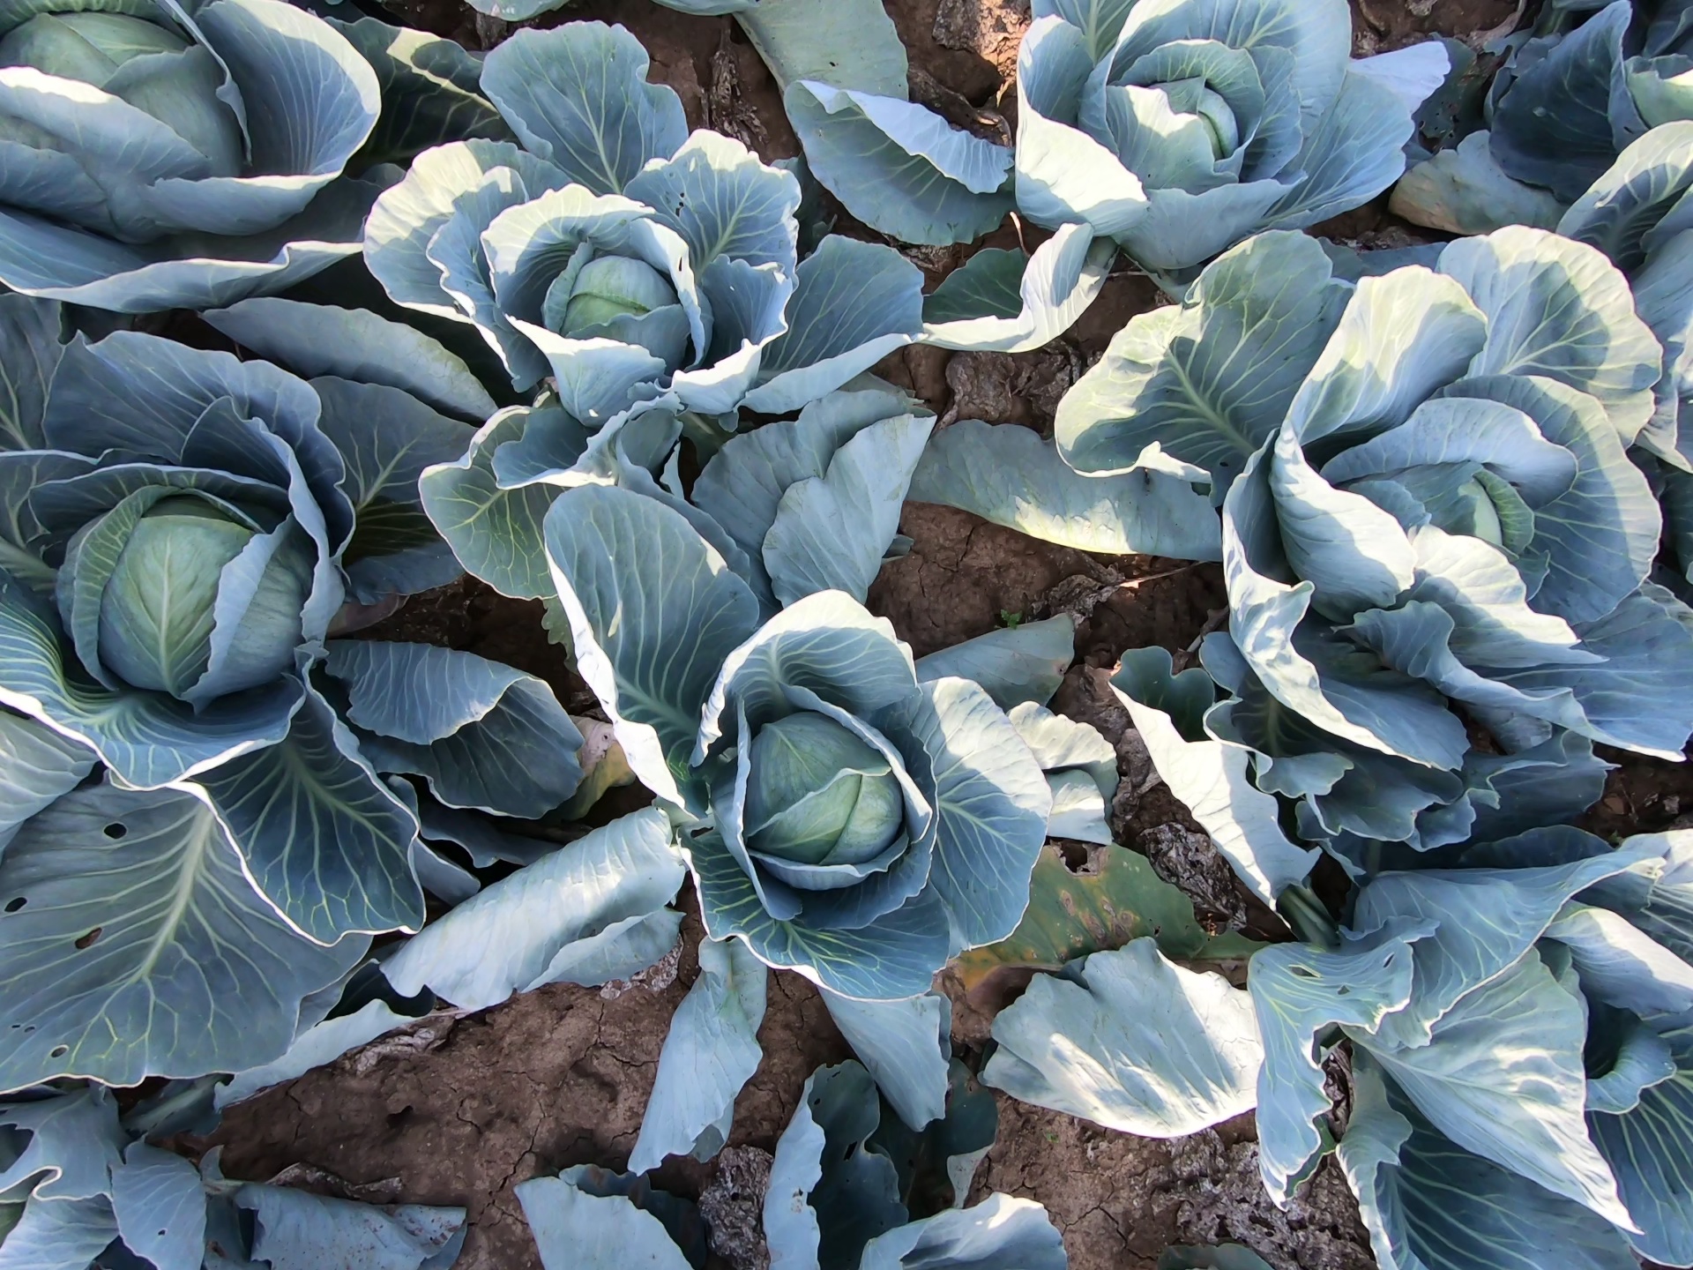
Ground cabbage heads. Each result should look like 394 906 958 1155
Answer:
1420 923 1592 1083
553 258 684 377
3 10 252 227
74 492 299 698
735 711 904 881
1376 458 1508 596
1124 78 1238 201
